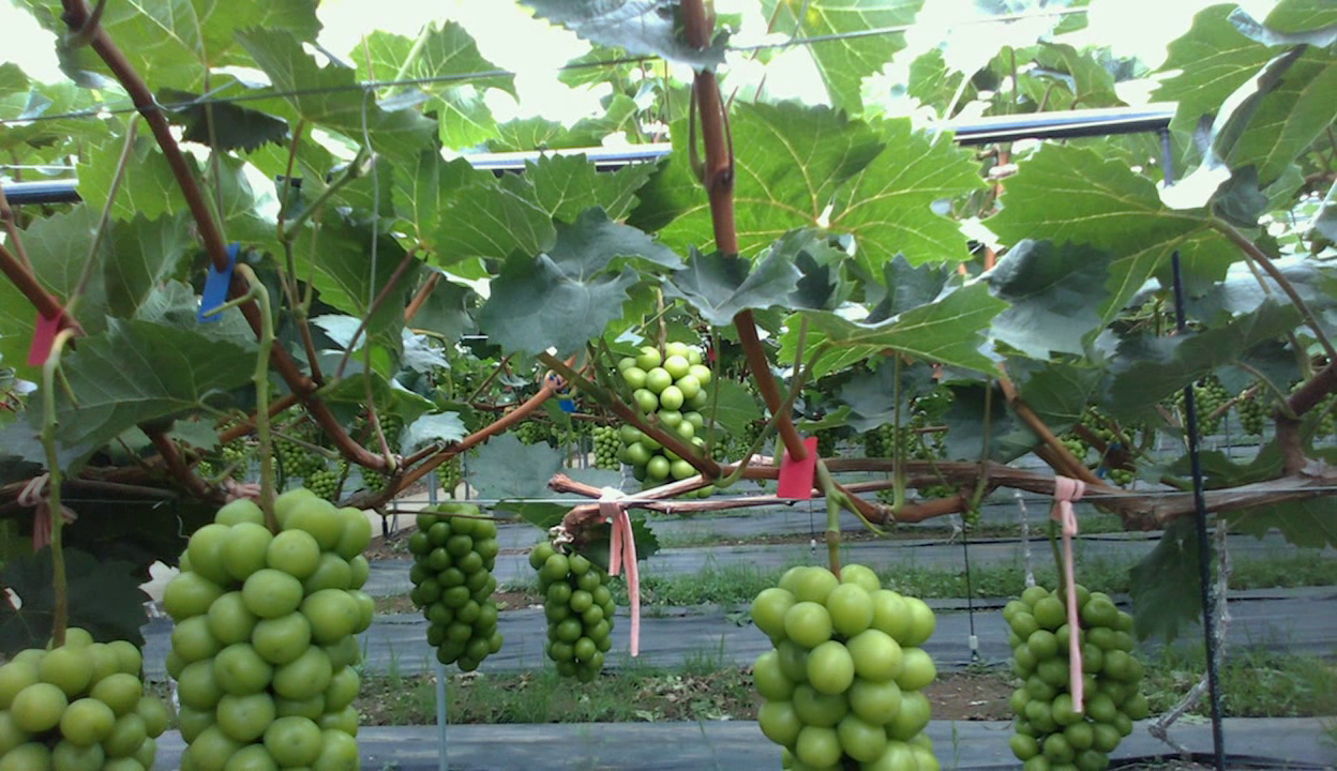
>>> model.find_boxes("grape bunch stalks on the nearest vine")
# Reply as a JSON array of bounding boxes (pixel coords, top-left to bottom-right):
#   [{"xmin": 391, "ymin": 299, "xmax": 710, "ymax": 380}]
[
  {"xmin": 1047, "ymin": 501, "xmax": 1067, "ymax": 611},
  {"xmin": 815, "ymin": 458, "xmax": 841, "ymax": 584},
  {"xmin": 236, "ymin": 261, "xmax": 280, "ymax": 538},
  {"xmin": 37, "ymin": 326, "xmax": 81, "ymax": 649}
]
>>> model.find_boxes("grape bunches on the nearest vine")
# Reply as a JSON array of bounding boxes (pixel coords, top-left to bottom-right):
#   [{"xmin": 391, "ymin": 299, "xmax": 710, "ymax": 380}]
[
  {"xmin": 1003, "ymin": 583, "xmax": 1147, "ymax": 770},
  {"xmin": 750, "ymin": 563, "xmax": 938, "ymax": 769},
  {"xmin": 163, "ymin": 487, "xmax": 374, "ymax": 770},
  {"xmin": 0, "ymin": 628, "xmax": 167, "ymax": 770}
]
